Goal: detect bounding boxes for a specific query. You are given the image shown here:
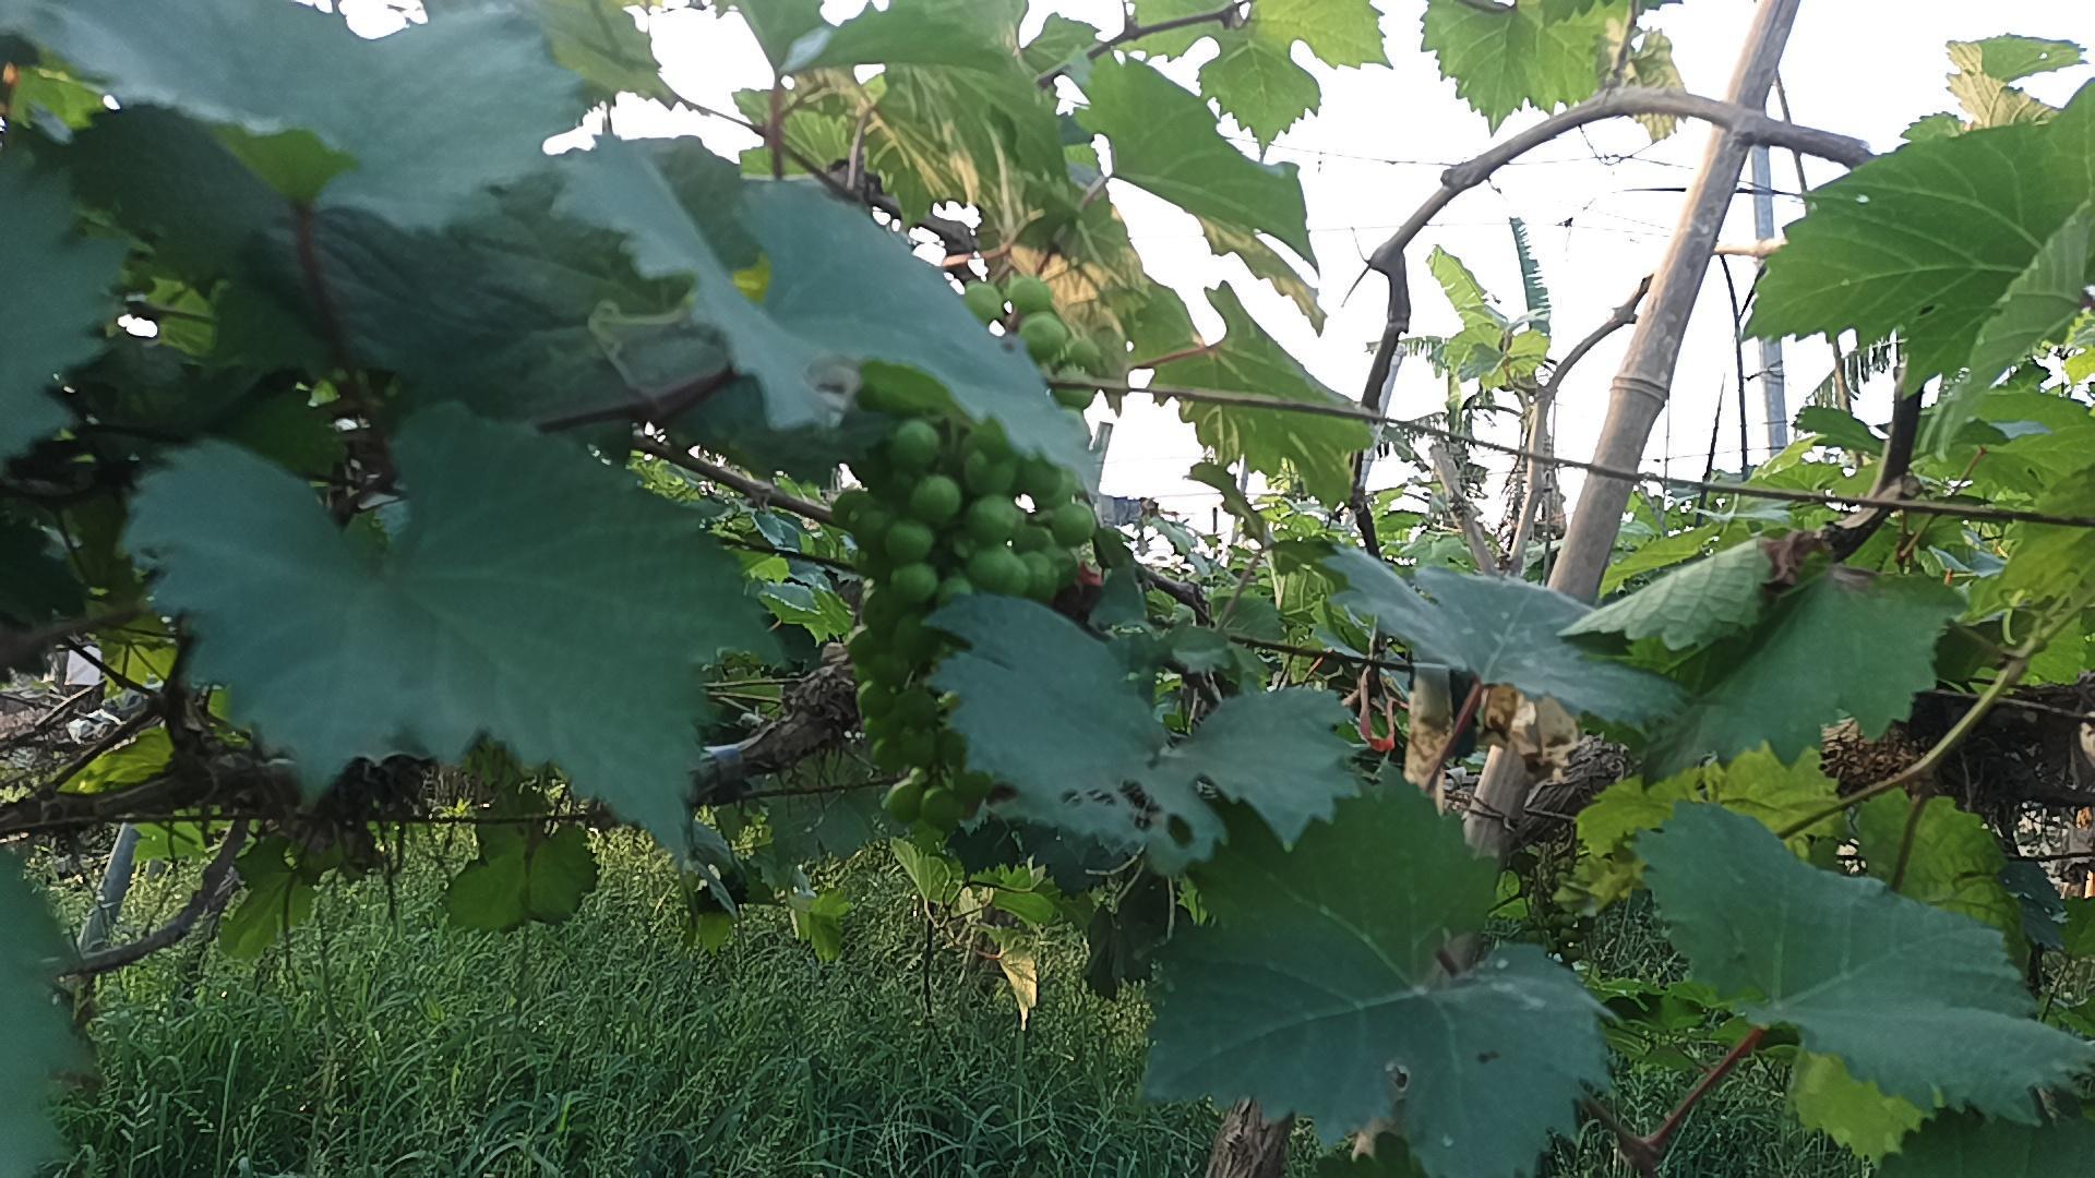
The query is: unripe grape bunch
[827,275,1105,827]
